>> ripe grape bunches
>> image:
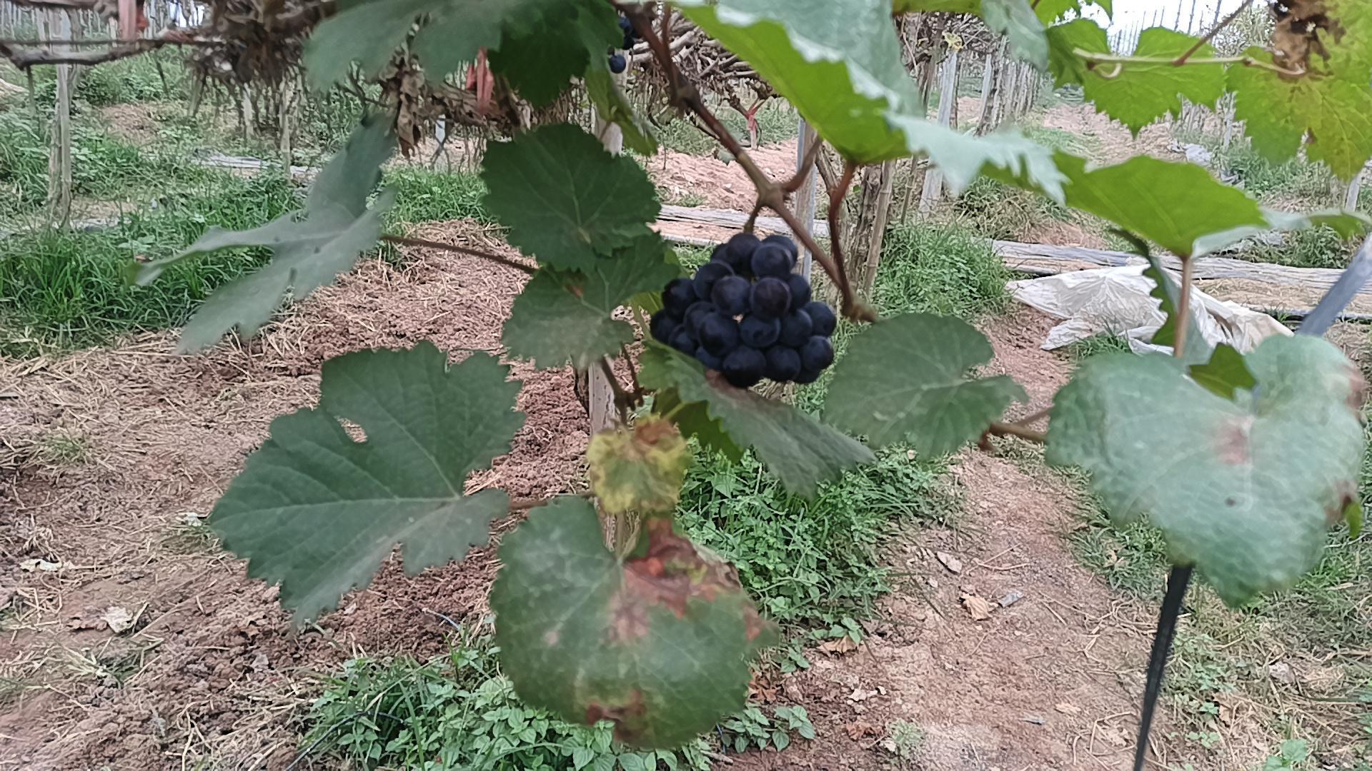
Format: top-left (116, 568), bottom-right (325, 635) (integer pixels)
top-left (607, 16), bottom-right (639, 74)
top-left (651, 233), bottom-right (835, 387)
